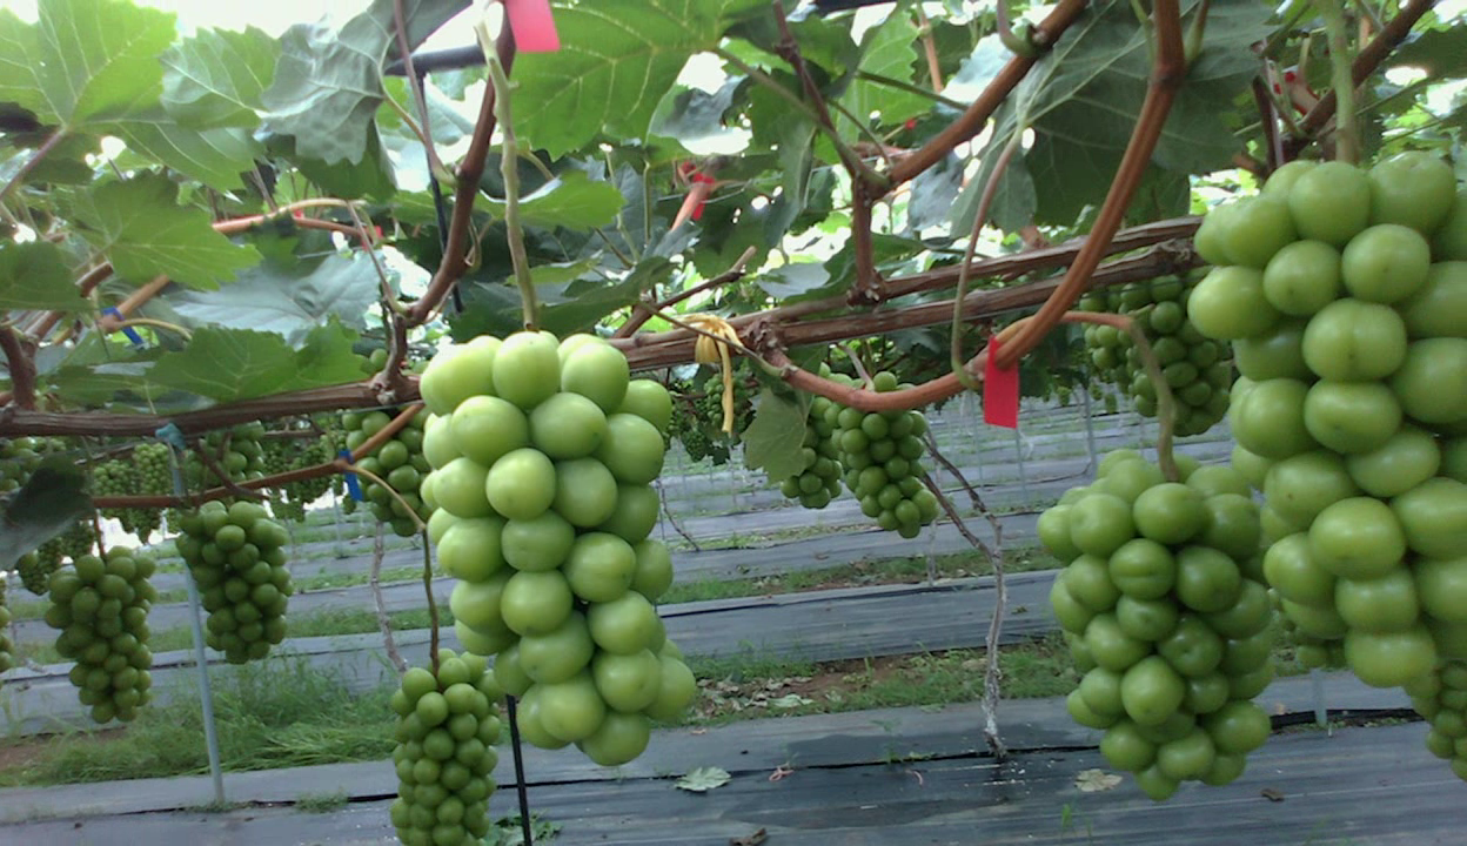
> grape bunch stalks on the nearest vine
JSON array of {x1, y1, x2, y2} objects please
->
[
  {"x1": 470, "y1": 2, "x2": 542, "y2": 330},
  {"x1": 1322, "y1": 2, "x2": 1360, "y2": 161},
  {"x1": 1064, "y1": 311, "x2": 1178, "y2": 478}
]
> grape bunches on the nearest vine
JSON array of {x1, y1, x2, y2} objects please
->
[
  {"x1": 1038, "y1": 446, "x2": 1277, "y2": 800},
  {"x1": 420, "y1": 330, "x2": 697, "y2": 765},
  {"x1": 1186, "y1": 152, "x2": 1466, "y2": 686}
]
